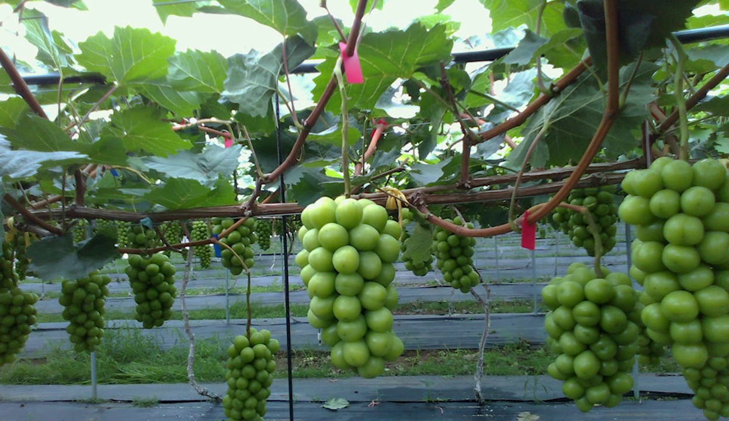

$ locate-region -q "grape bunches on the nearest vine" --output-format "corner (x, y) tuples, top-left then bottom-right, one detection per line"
(294, 196), (404, 378)
(617, 156), (728, 368)
(541, 261), (645, 413)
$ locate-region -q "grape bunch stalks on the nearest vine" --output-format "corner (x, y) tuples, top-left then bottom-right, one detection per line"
(332, 57), (351, 197)
(562, 204), (603, 277)
(669, 36), (689, 159)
